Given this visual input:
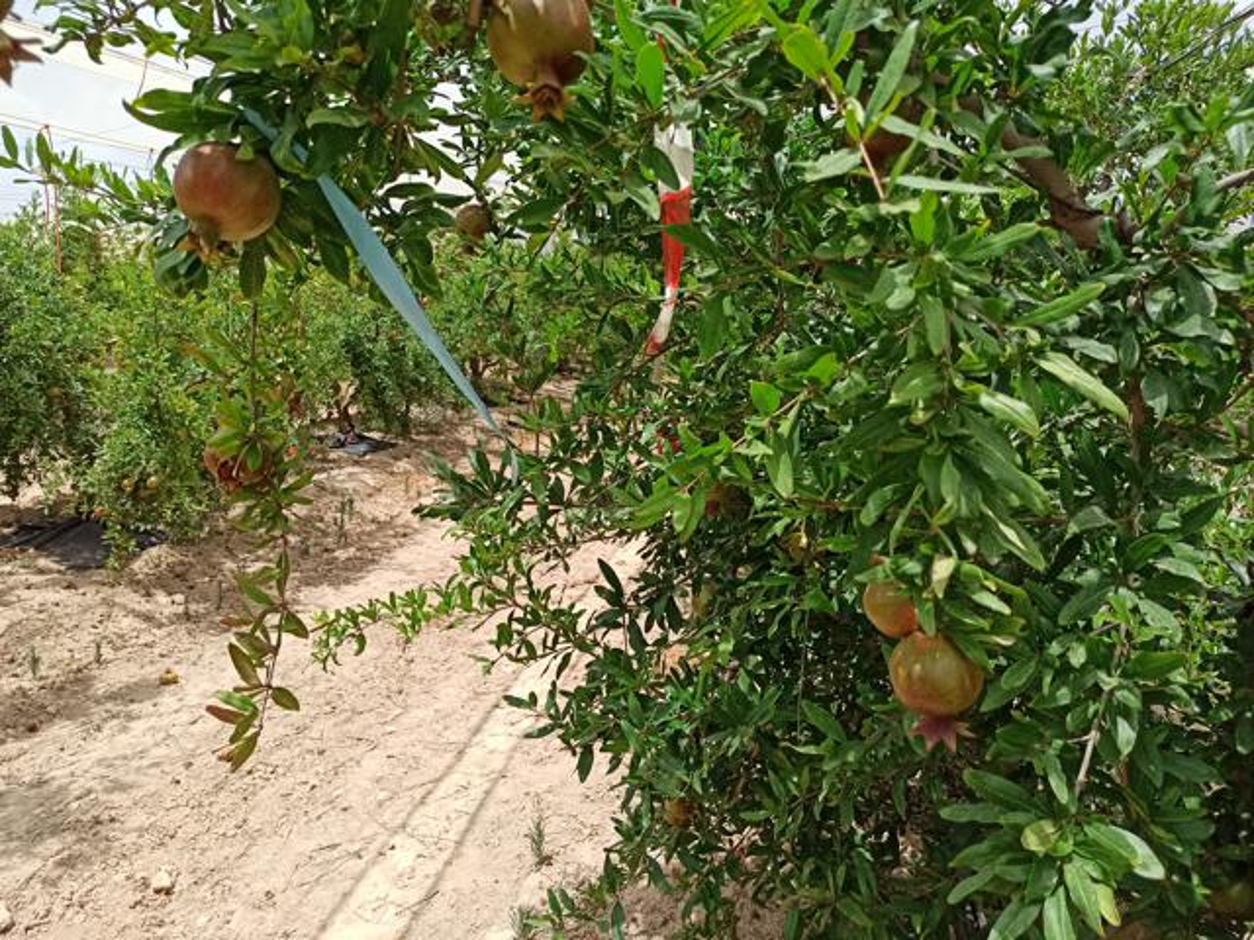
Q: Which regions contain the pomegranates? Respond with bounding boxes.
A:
[890,629,986,756]
[662,799,694,828]
[202,446,276,495]
[486,0,598,123]
[862,584,919,638]
[170,141,282,268]
[1209,879,1254,920]
[0,0,45,90]
[455,204,490,241]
